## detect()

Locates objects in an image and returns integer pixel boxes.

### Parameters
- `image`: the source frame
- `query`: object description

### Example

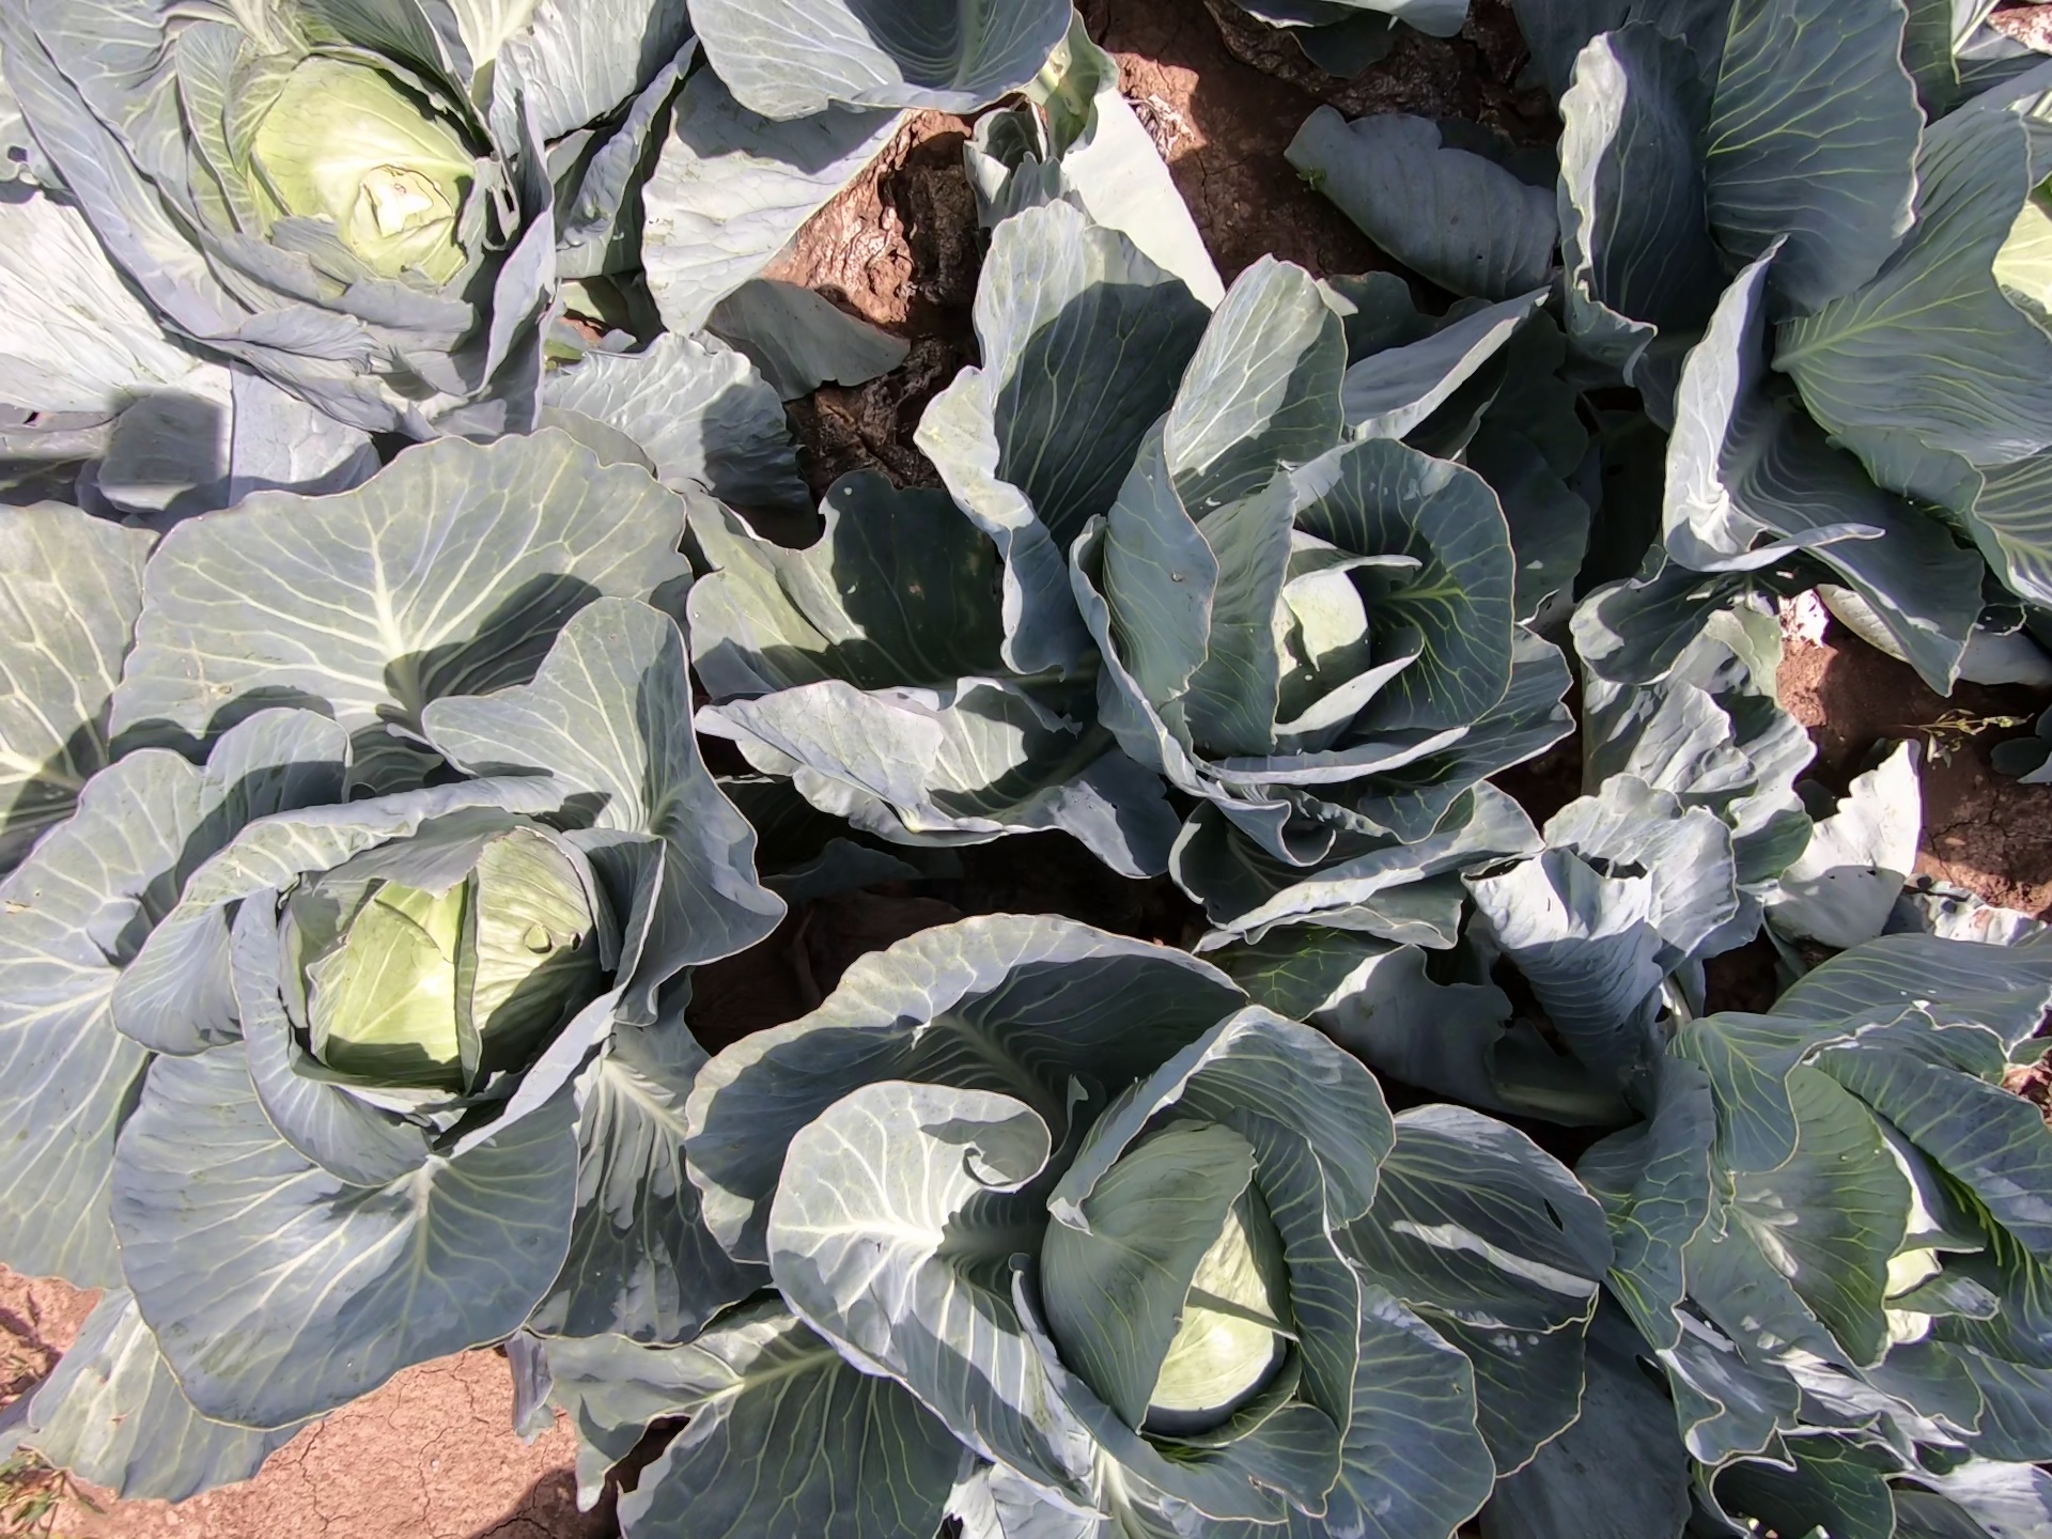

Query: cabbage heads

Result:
[185,46,509,344]
[1037,1134,1304,1444]
[1167,516,1374,745]
[279,809,612,1113]
[1683,1088,1953,1338]
[1866,151,2049,451]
